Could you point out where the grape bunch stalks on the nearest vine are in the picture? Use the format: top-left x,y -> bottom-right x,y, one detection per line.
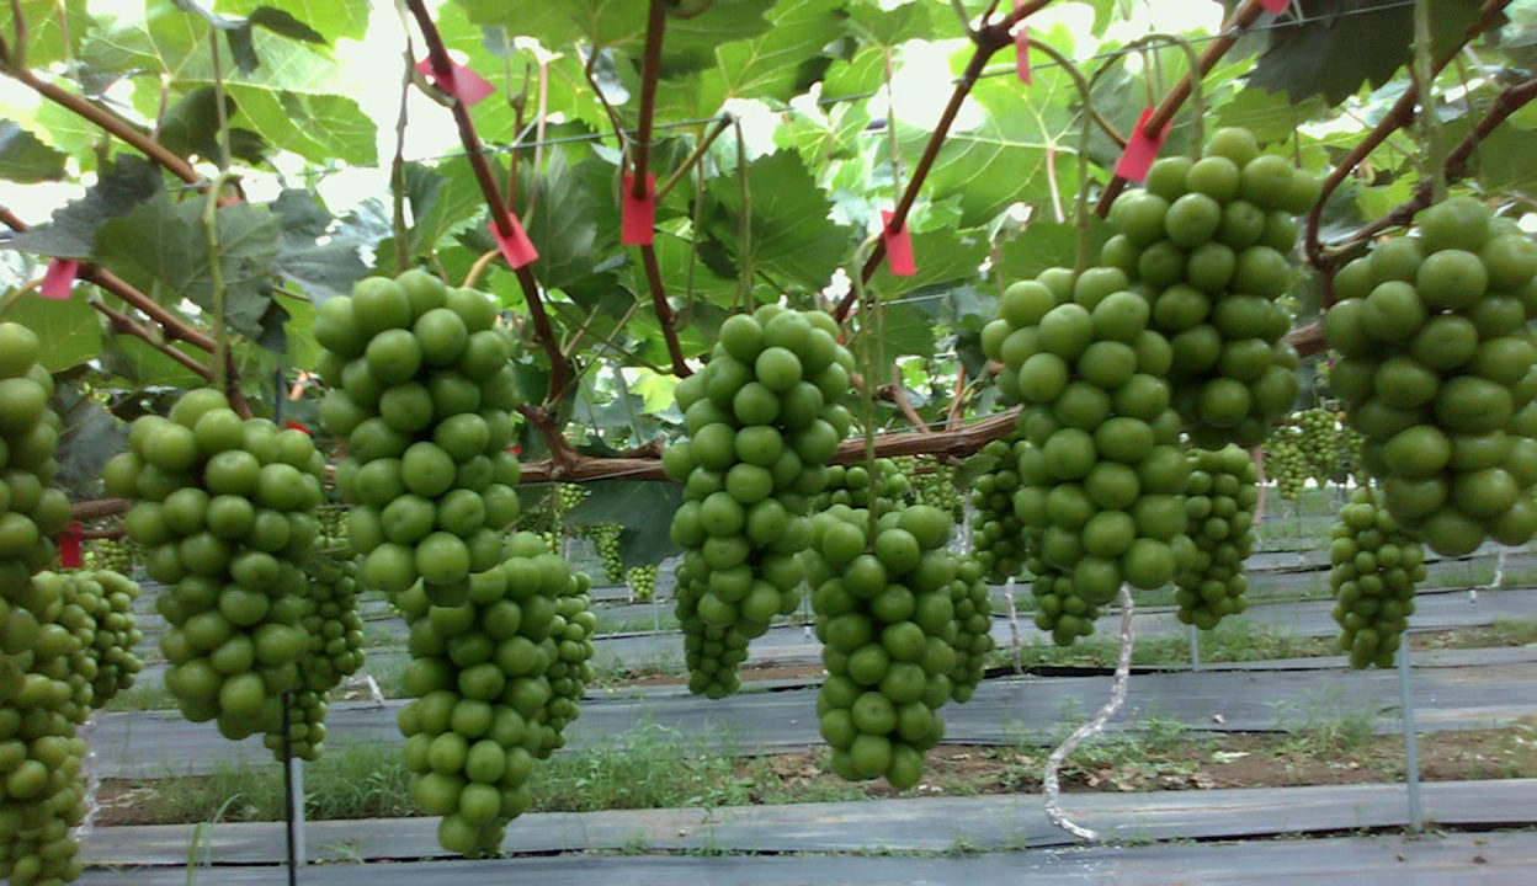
1126,32 -> 1204,164
201,171 -> 233,393
851,233 -> 882,553
1025,34 -> 1091,303
1409,0 -> 1448,206
655,112 -> 756,315
392,7 -> 415,274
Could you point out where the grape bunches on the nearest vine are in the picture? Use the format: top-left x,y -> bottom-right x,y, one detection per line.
1321,197 -> 1536,559
312,268 -> 522,609
1096,127 -> 1320,452
100,386 -> 325,741
394,532 -> 570,854
804,503 -> 959,791
663,301 -> 855,639
980,266 -> 1198,605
